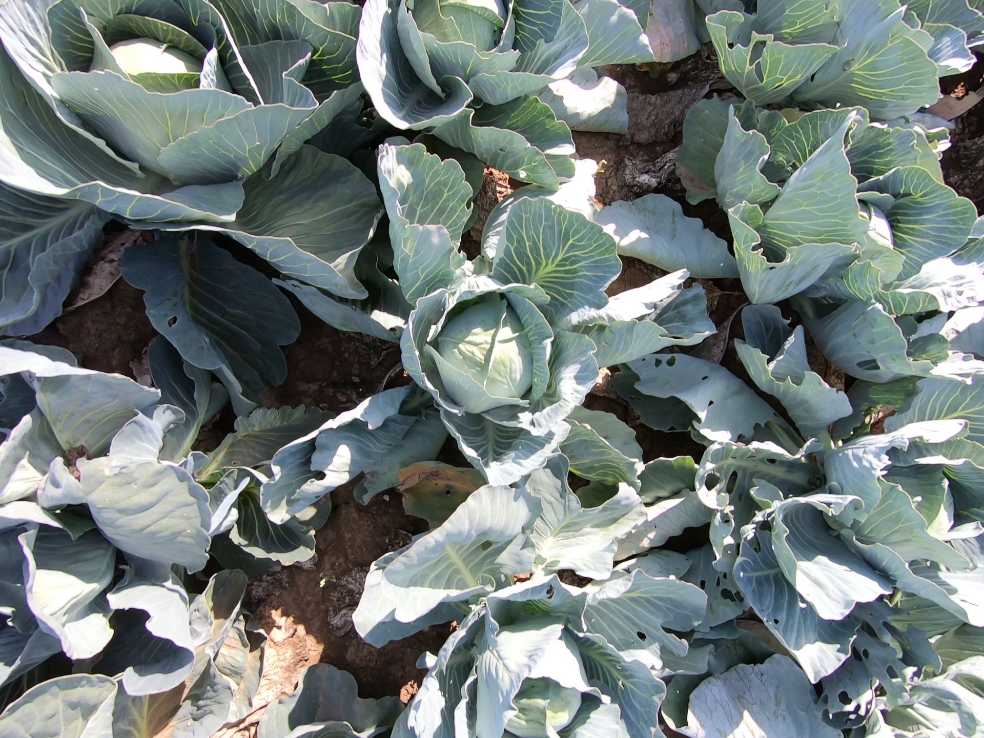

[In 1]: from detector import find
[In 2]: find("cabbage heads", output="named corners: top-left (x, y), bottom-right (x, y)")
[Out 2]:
top-left (827, 200), bottom-right (890, 272)
top-left (440, 300), bottom-right (542, 399)
top-left (94, 36), bottom-right (222, 154)
top-left (488, 624), bottom-right (585, 737)
top-left (419, 0), bottom-right (507, 74)
top-left (863, 457), bottom-right (957, 548)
